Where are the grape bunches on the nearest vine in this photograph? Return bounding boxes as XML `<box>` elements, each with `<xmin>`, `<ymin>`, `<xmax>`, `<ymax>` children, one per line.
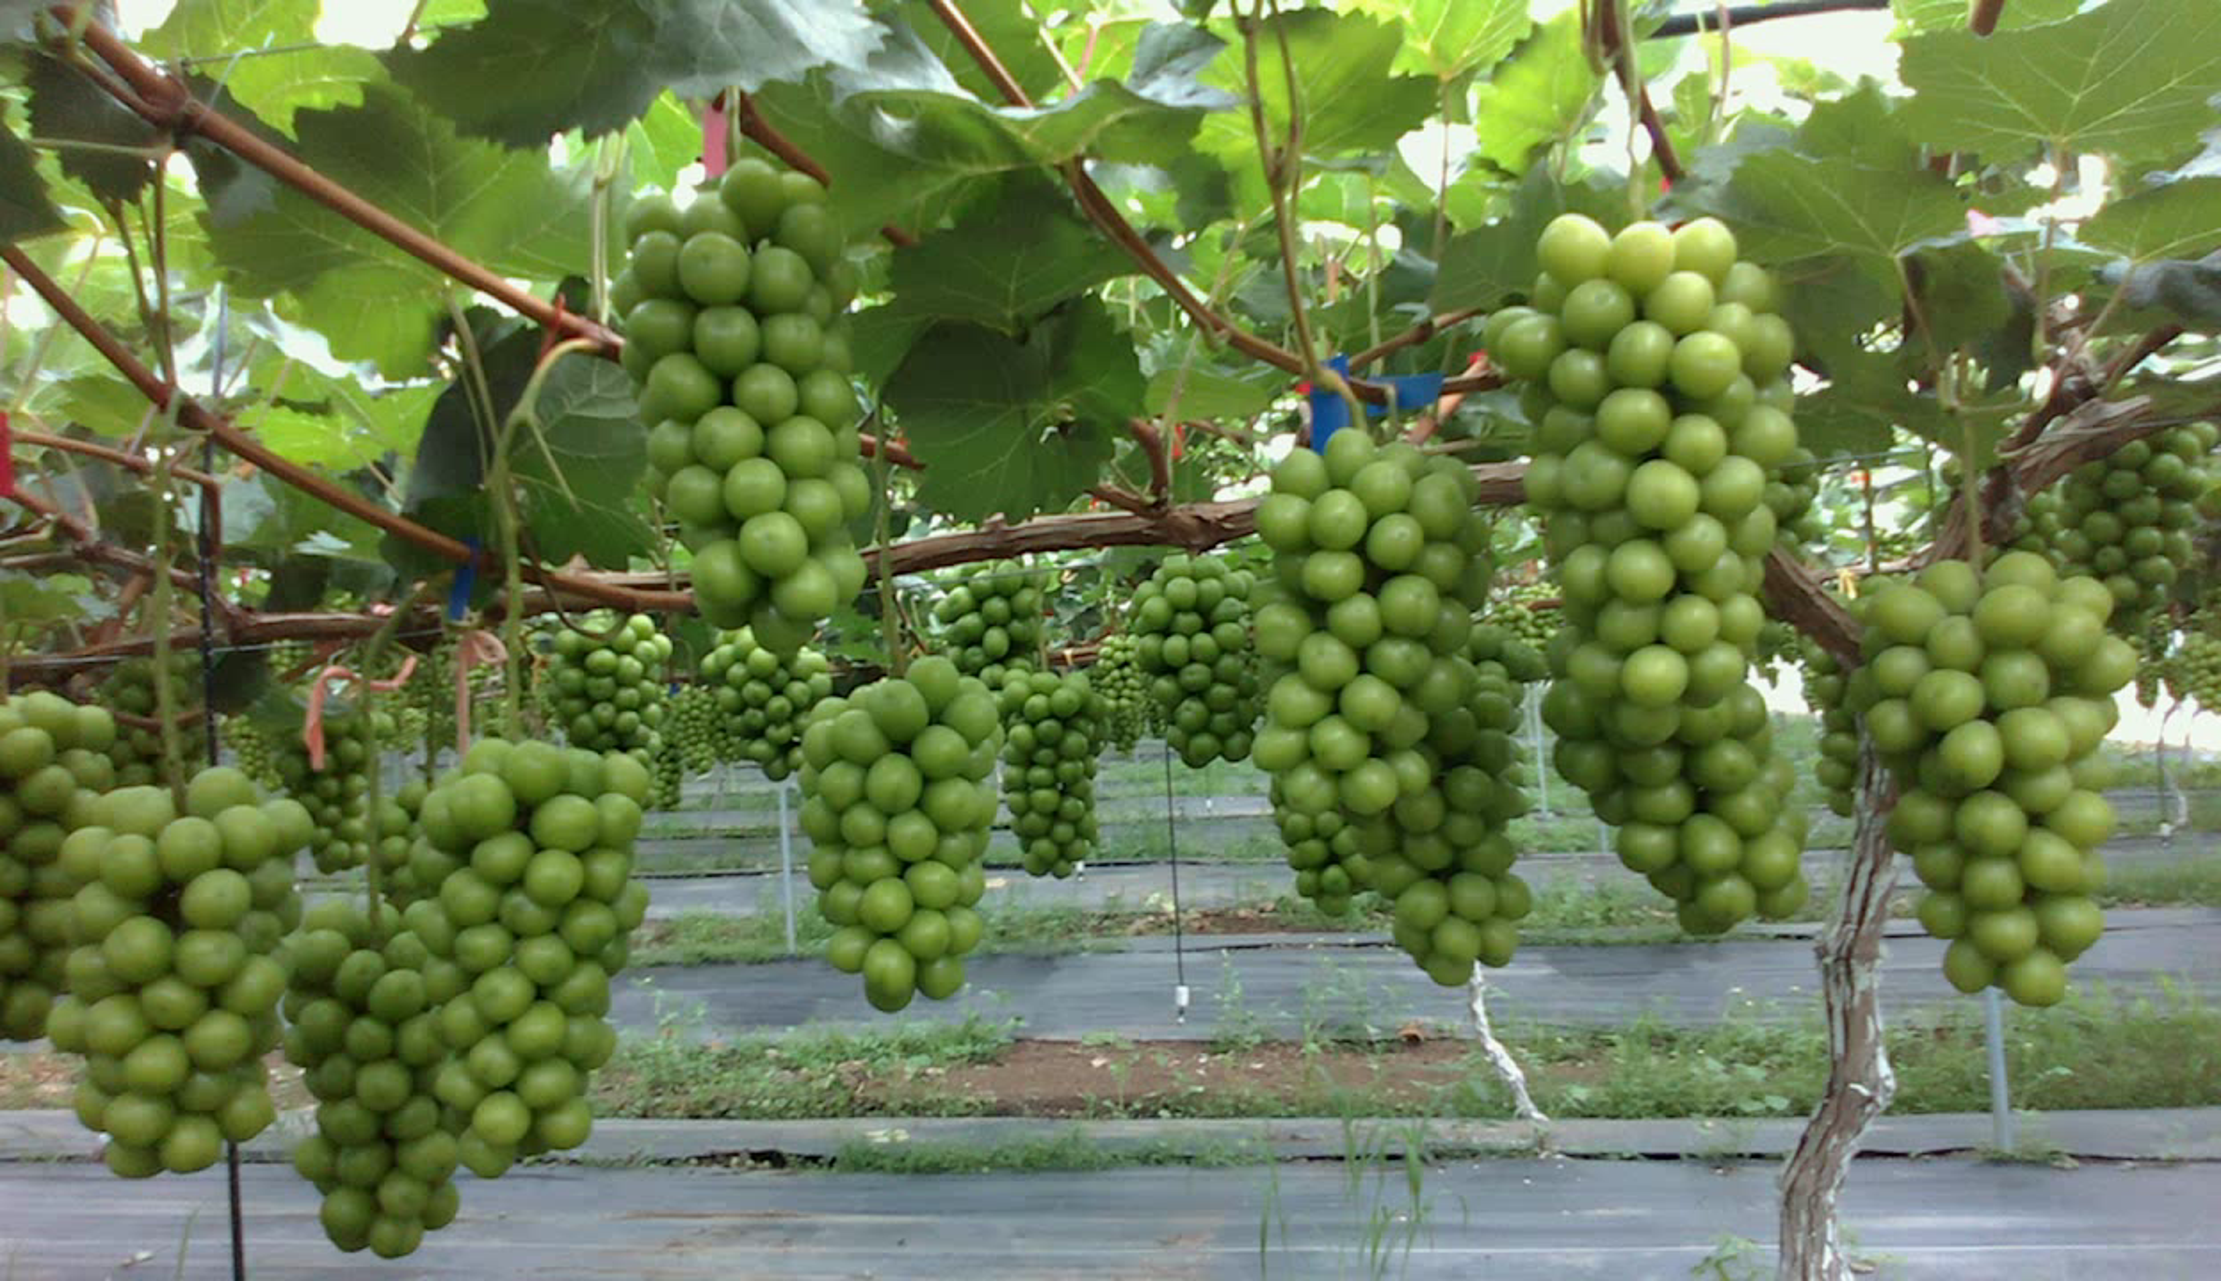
<box><xmin>43</xmin><ymin>765</ymin><xmax>317</xmax><ymax>1180</ymax></box>
<box><xmin>796</xmin><ymin>657</ymin><xmax>1004</xmax><ymax>1012</ymax></box>
<box><xmin>1849</xmin><ymin>552</ymin><xmax>2137</xmax><ymax>1009</ymax></box>
<box><xmin>607</xmin><ymin>158</ymin><xmax>874</xmax><ymax>651</ymax></box>
<box><xmin>402</xmin><ymin>738</ymin><xmax>650</xmax><ymax>1180</ymax></box>
<box><xmin>1246</xmin><ymin>429</ymin><xmax>1490</xmax><ymax>817</ymax></box>
<box><xmin>1538</xmin><ymin>624</ymin><xmax>1810</xmax><ymax>941</ymax></box>
<box><xmin>1349</xmin><ymin>623</ymin><xmax>1548</xmax><ymax>991</ymax></box>
<box><xmin>281</xmin><ymin>902</ymin><xmax>470</xmax><ymax>1260</ymax></box>
<box><xmin>1481</xmin><ymin>212</ymin><xmax>1799</xmax><ymax>708</ymax></box>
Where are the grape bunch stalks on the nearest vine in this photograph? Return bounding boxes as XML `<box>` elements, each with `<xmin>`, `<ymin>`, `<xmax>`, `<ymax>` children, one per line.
<box><xmin>724</xmin><ymin>85</ymin><xmax>740</xmax><ymax>165</ymax></box>
<box><xmin>151</xmin><ymin>395</ymin><xmax>187</xmax><ymax>820</ymax></box>
<box><xmin>361</xmin><ymin>571</ymin><xmax>456</xmax><ymax>952</ymax></box>
<box><xmin>1267</xmin><ymin>189</ymin><xmax>1367</xmax><ymax>432</ymax></box>
<box><xmin>1959</xmin><ymin>347</ymin><xmax>1981</xmax><ymax>584</ymax></box>
<box><xmin>876</xmin><ymin>390</ymin><xmax>908</xmax><ymax>678</ymax></box>
<box><xmin>486</xmin><ymin>338</ymin><xmax>594</xmax><ymax>740</ymax></box>
<box><xmin>1614</xmin><ymin>0</ymin><xmax>1646</xmax><ymax>224</ymax></box>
